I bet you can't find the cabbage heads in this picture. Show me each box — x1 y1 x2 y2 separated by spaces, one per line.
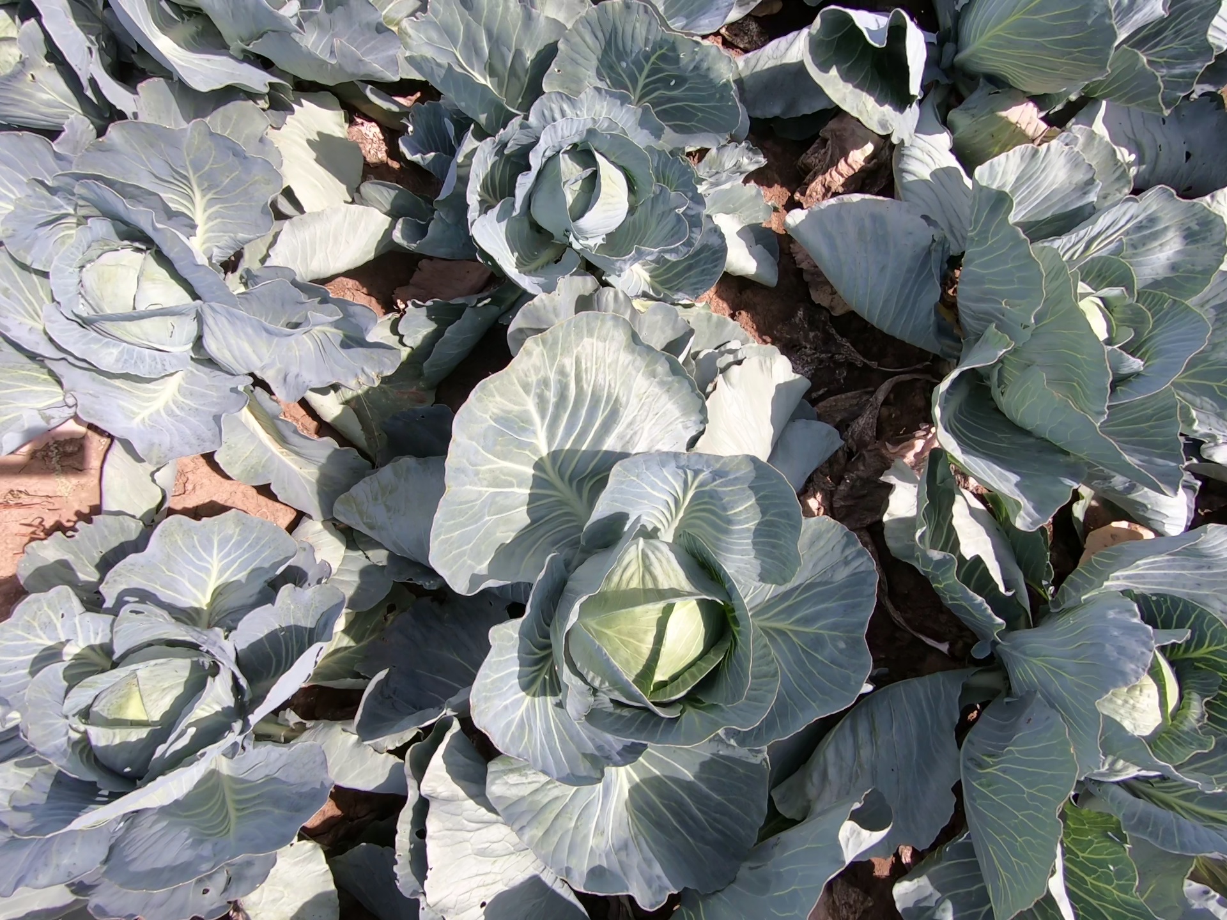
73 238 209 352
1042 628 1184 773
1021 275 1118 371
532 150 628 236
83 643 245 778
564 536 722 705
